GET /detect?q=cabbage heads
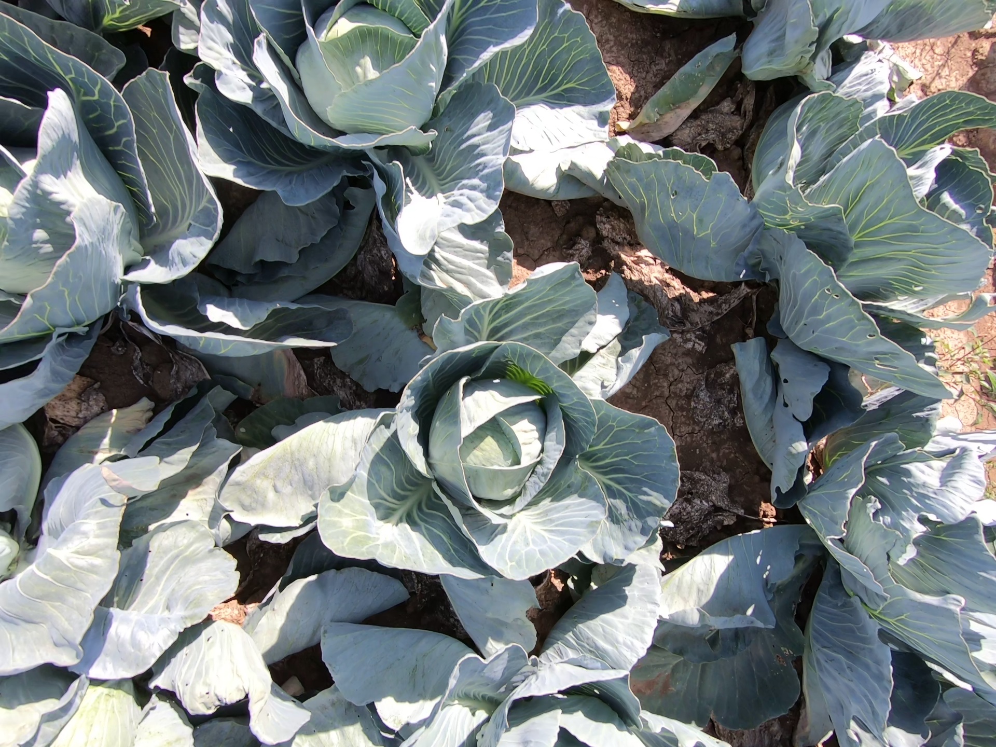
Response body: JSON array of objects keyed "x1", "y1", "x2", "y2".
[
  {"x1": 3, "y1": 663, "x2": 128, "y2": 746},
  {"x1": 312, "y1": 5, "x2": 420, "y2": 131},
  {"x1": 2, "y1": 154, "x2": 110, "y2": 284},
  {"x1": 436, "y1": 381, "x2": 547, "y2": 501}
]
